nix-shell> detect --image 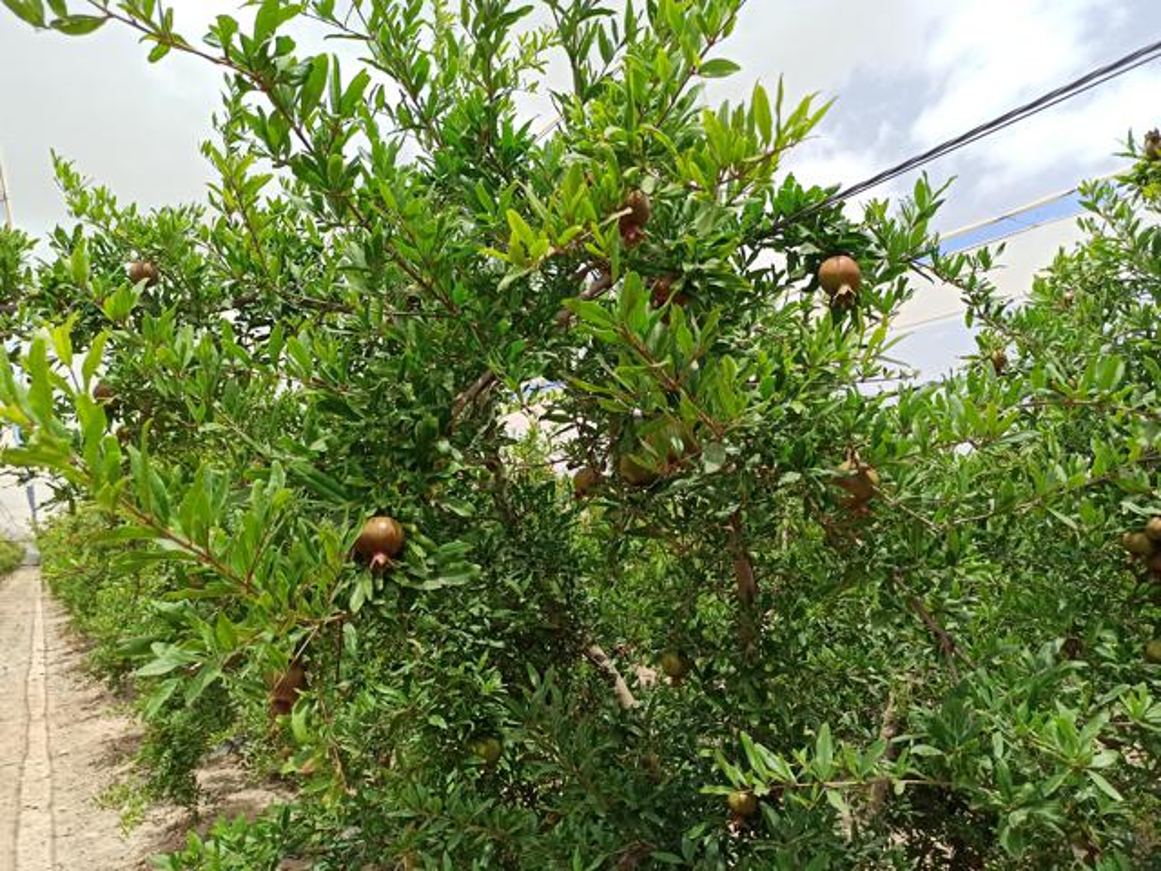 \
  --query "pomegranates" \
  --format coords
[129,259,160,287]
[263,661,308,715]
[660,651,684,686]
[619,189,649,247]
[816,254,862,305]
[473,737,501,758]
[356,515,405,573]
[93,385,112,399]
[989,350,1009,368]
[840,463,882,517]
[571,466,600,499]
[726,793,756,829]
[1121,530,1154,559]
[648,274,686,310]
[1145,639,1161,662]
[619,455,657,486]
[1143,515,1161,544]
[1146,550,1161,581]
